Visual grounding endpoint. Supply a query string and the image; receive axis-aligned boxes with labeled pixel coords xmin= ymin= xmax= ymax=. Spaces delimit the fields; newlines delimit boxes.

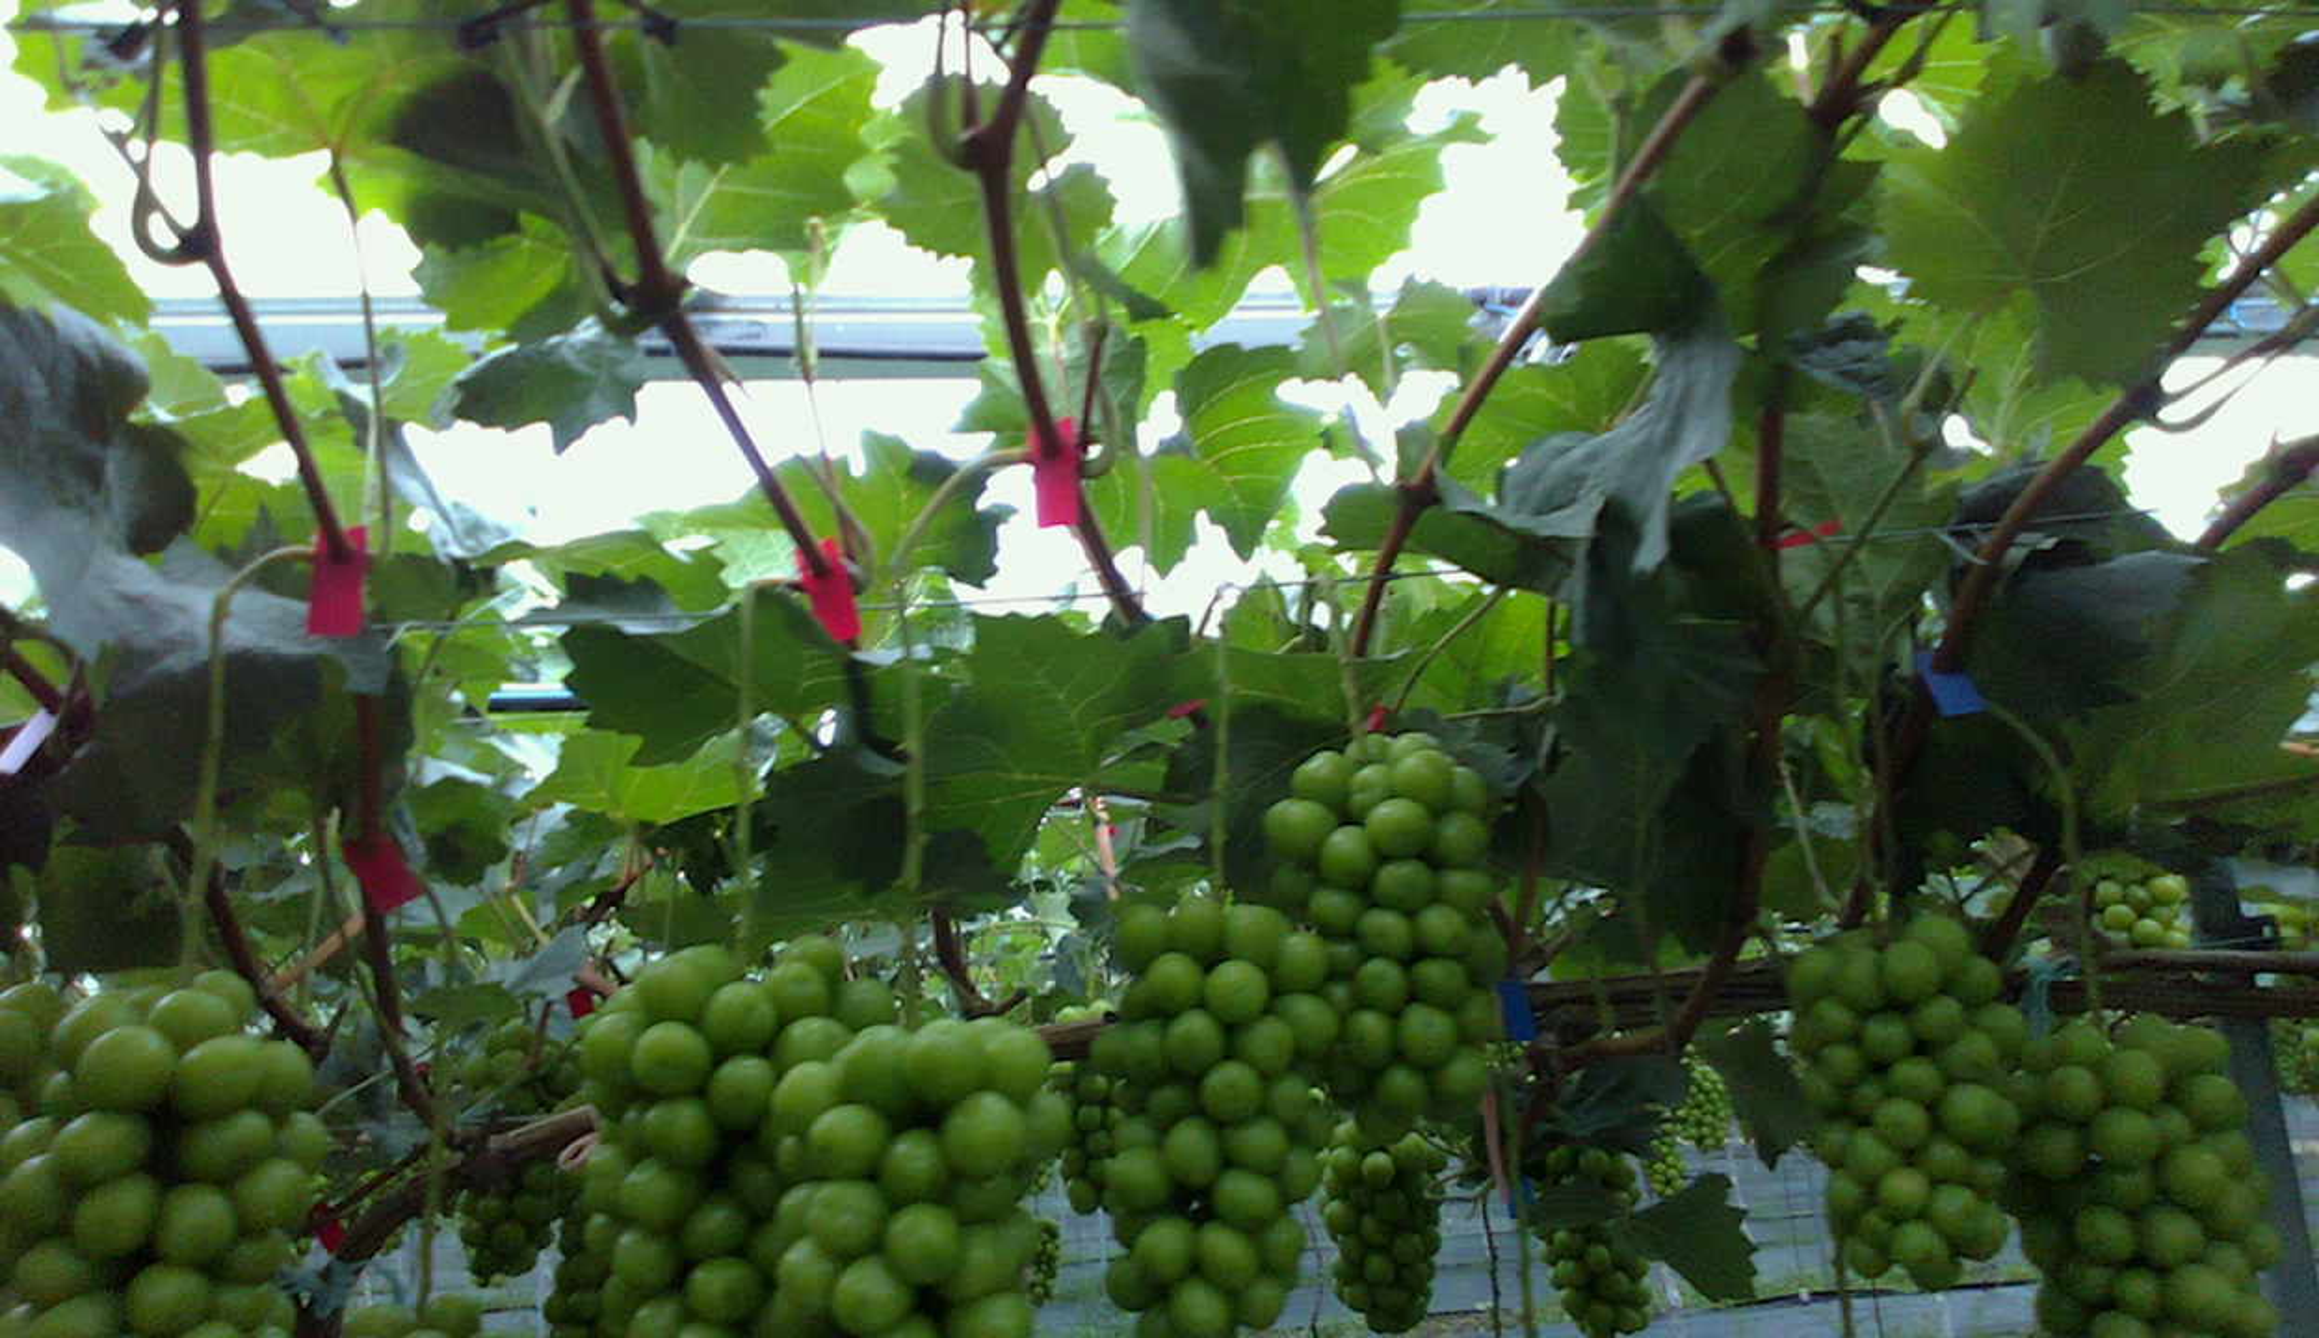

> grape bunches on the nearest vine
xmin=0 ymin=970 xmax=331 ymax=1336
xmin=1267 ymin=734 xmax=1507 ymax=1145
xmin=1098 ymin=896 xmax=1336 ymax=1334
xmin=767 ymin=1018 xmax=1067 ymax=1336
xmin=2005 ymin=1013 xmax=2284 ymax=1336
xmin=580 ymin=933 xmax=897 ymax=1336
xmin=1782 ymin=914 xmax=2022 ymax=1292
xmin=342 ymin=1290 xmax=483 ymax=1336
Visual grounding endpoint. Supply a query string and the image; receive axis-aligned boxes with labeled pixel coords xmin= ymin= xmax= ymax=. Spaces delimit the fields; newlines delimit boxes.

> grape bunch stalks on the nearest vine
xmin=182 ymin=543 xmax=312 ymax=983
xmin=414 ymin=890 xmax=455 ymax=1314
xmin=1793 ymin=520 xmax=1884 ymax=944
xmin=894 ymin=572 xmax=924 ymax=1024
xmin=736 ymin=578 xmax=801 ymax=972
xmin=1212 ymin=619 xmax=1230 ymax=898
xmin=1310 ymin=571 xmax=1371 ymax=760
xmin=1992 ymin=702 xmax=2102 ymax=1022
